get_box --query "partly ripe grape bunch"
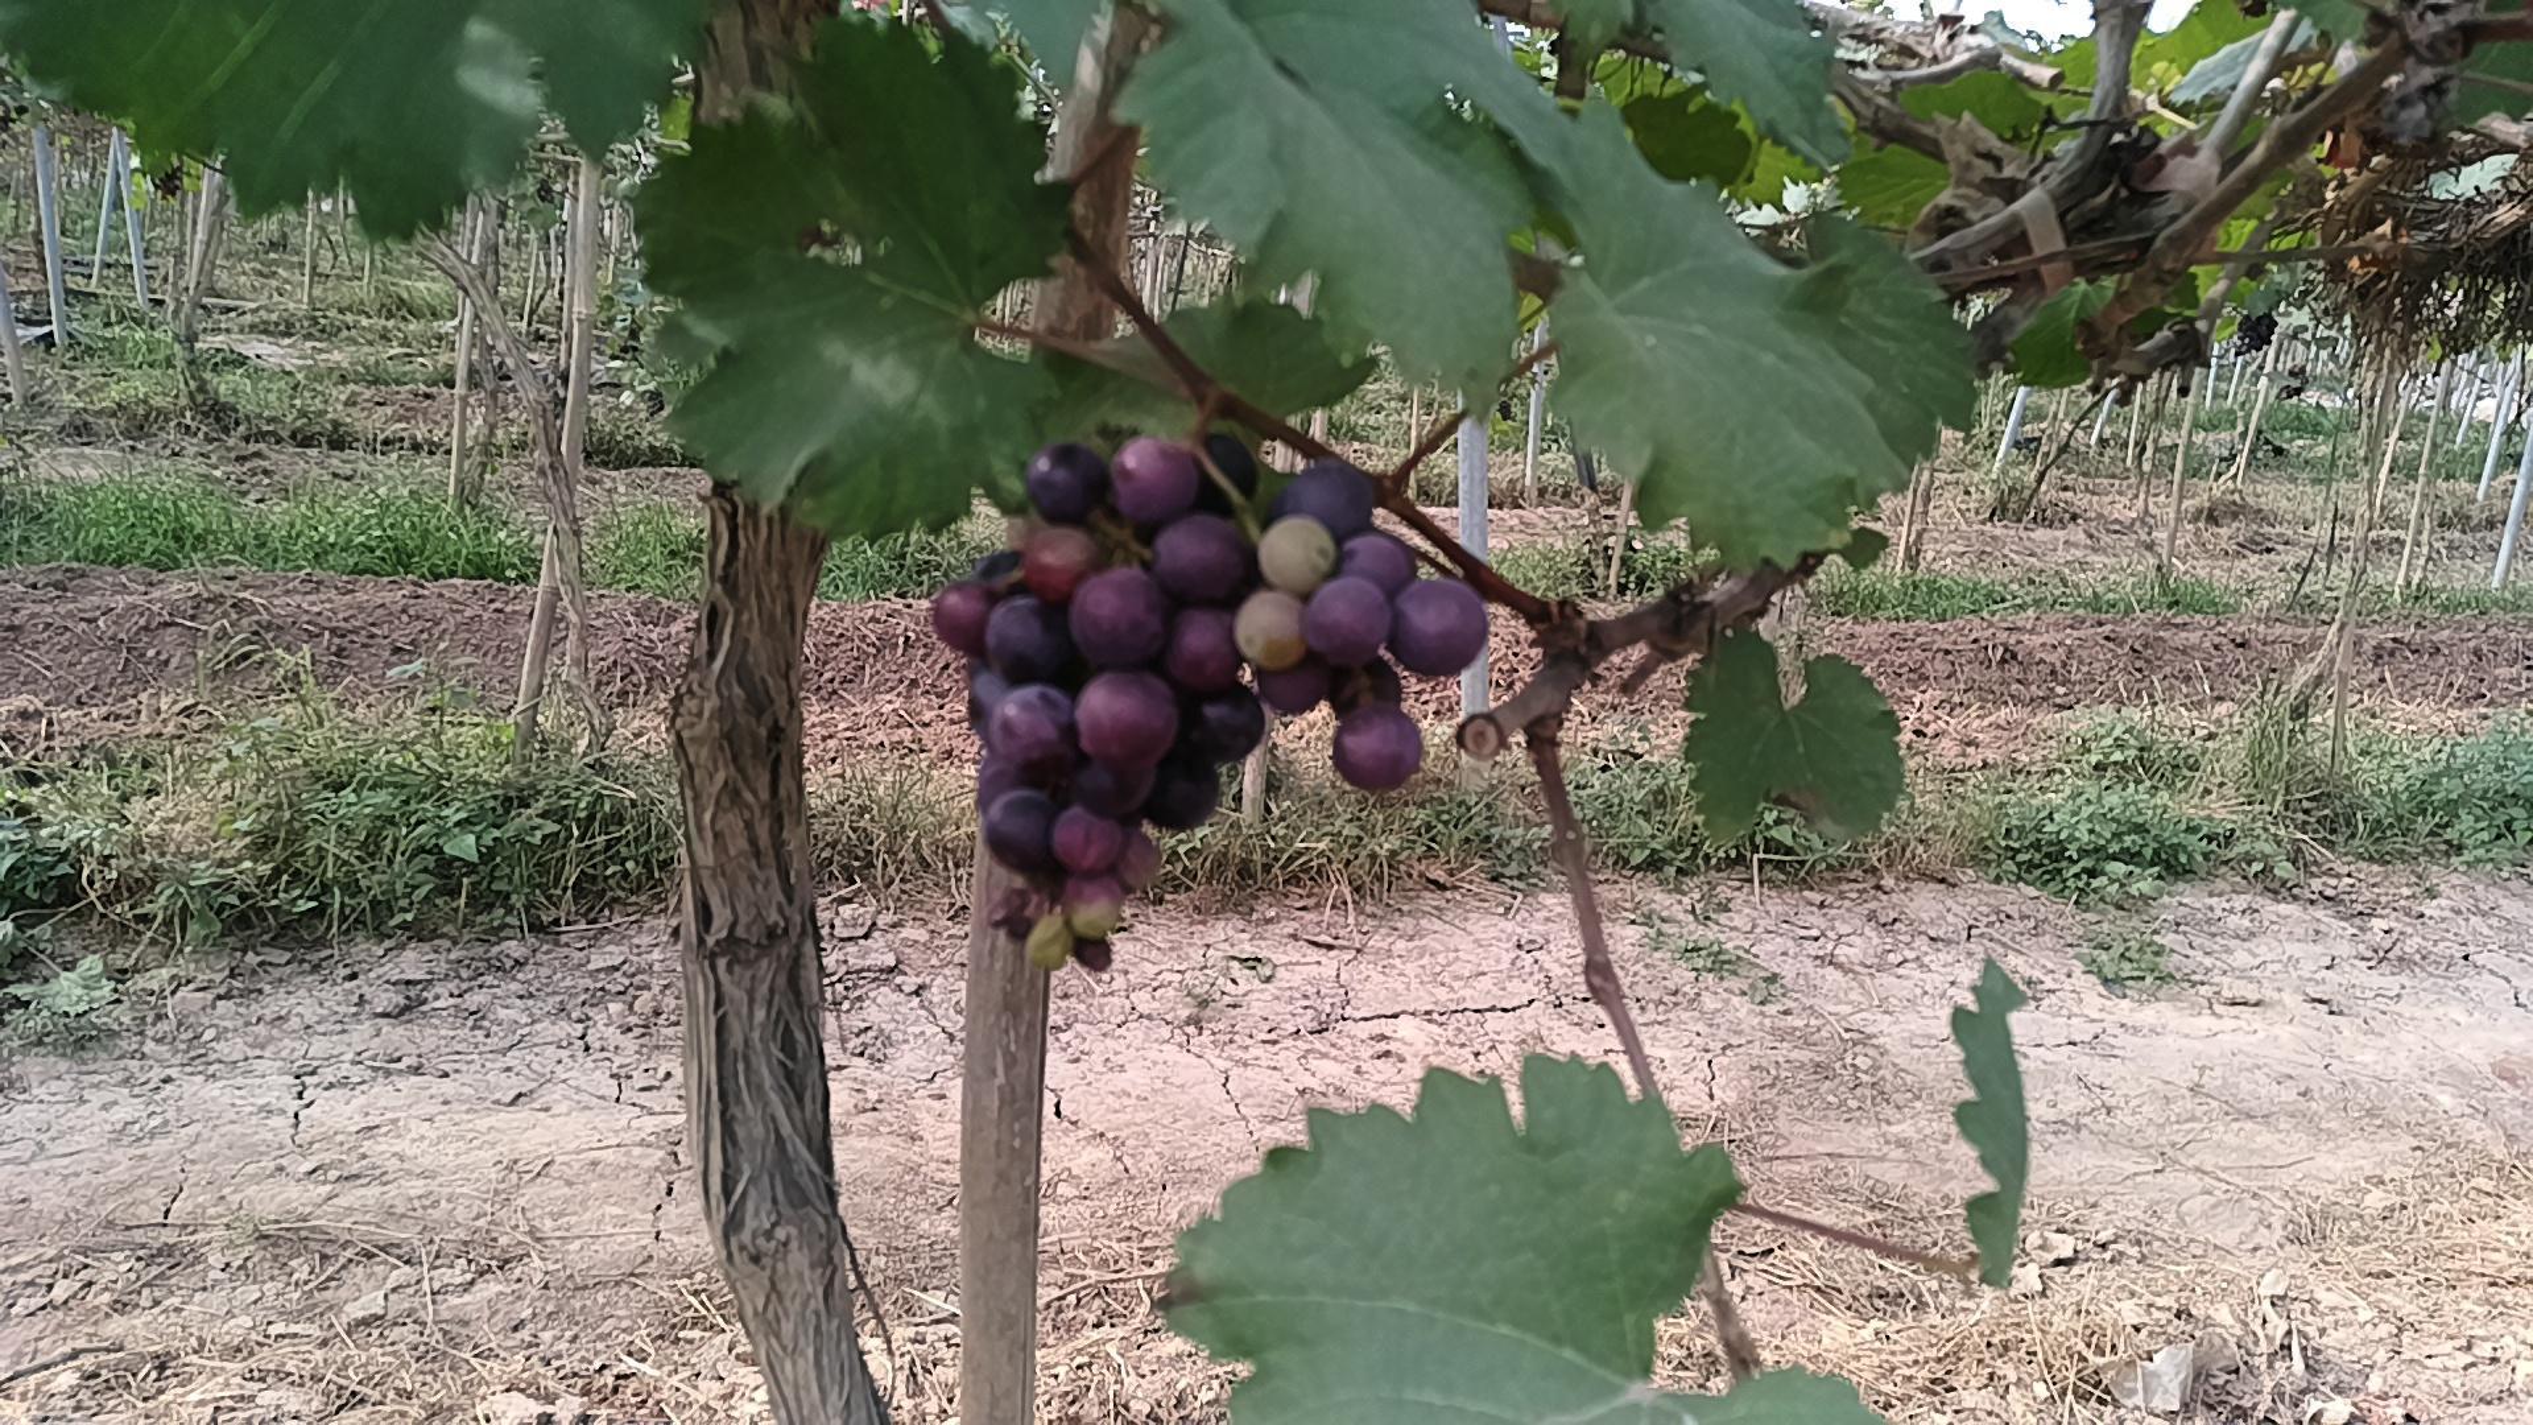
[933,434,1483,970]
